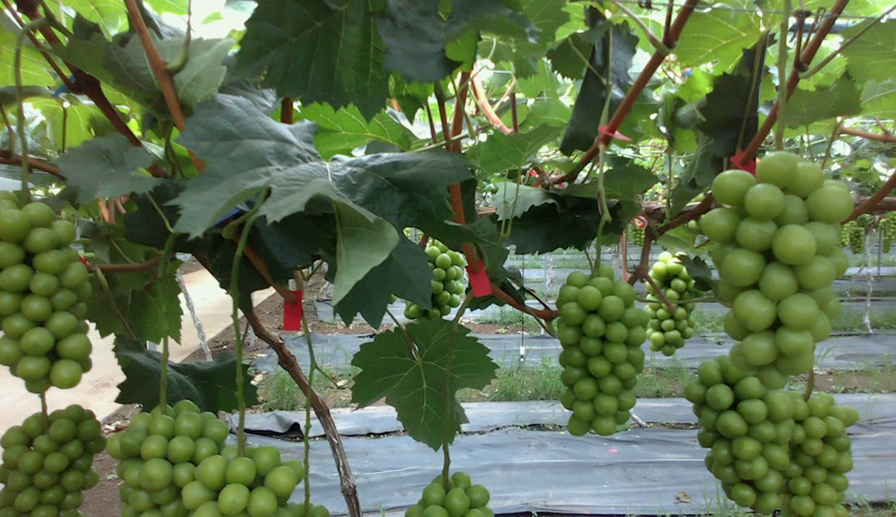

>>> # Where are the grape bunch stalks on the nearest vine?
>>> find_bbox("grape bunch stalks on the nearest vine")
[156,233,174,415]
[14,17,50,208]
[442,290,474,493]
[230,218,256,456]
[39,393,50,434]
[774,0,790,150]
[591,141,609,279]
[803,369,814,401]
[302,309,315,516]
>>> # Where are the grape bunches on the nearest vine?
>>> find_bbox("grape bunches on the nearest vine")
[556,264,650,436]
[286,500,329,516]
[701,151,854,389]
[683,355,795,515]
[181,442,305,516]
[0,189,93,393]
[778,390,859,516]
[106,399,228,516]
[0,403,107,516]
[405,471,495,516]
